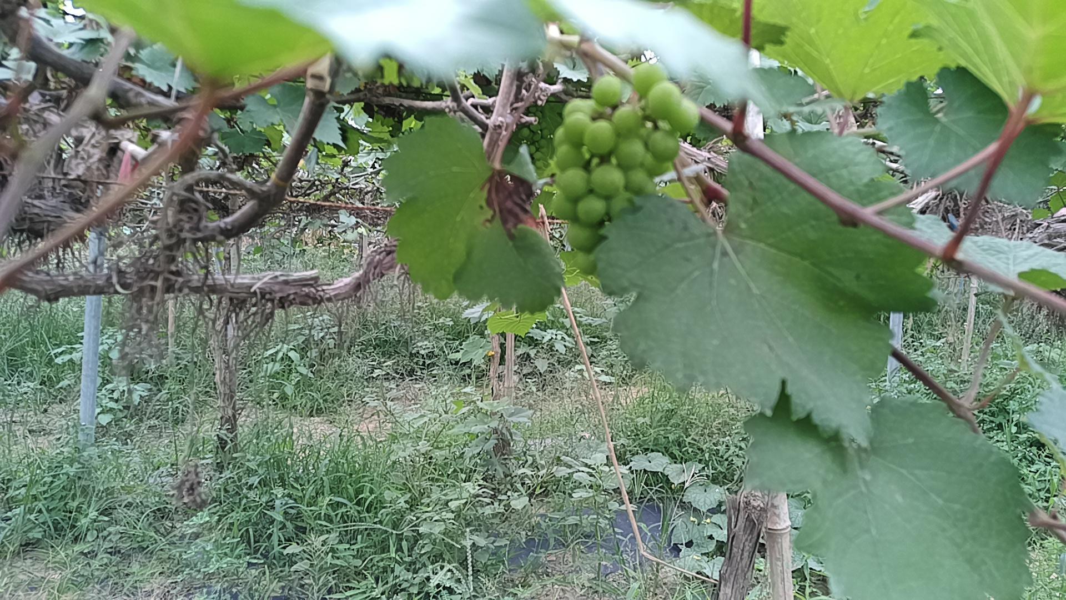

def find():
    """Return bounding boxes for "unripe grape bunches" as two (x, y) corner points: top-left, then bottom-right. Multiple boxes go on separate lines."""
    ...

(549, 63), (699, 274)
(519, 104), (550, 168)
